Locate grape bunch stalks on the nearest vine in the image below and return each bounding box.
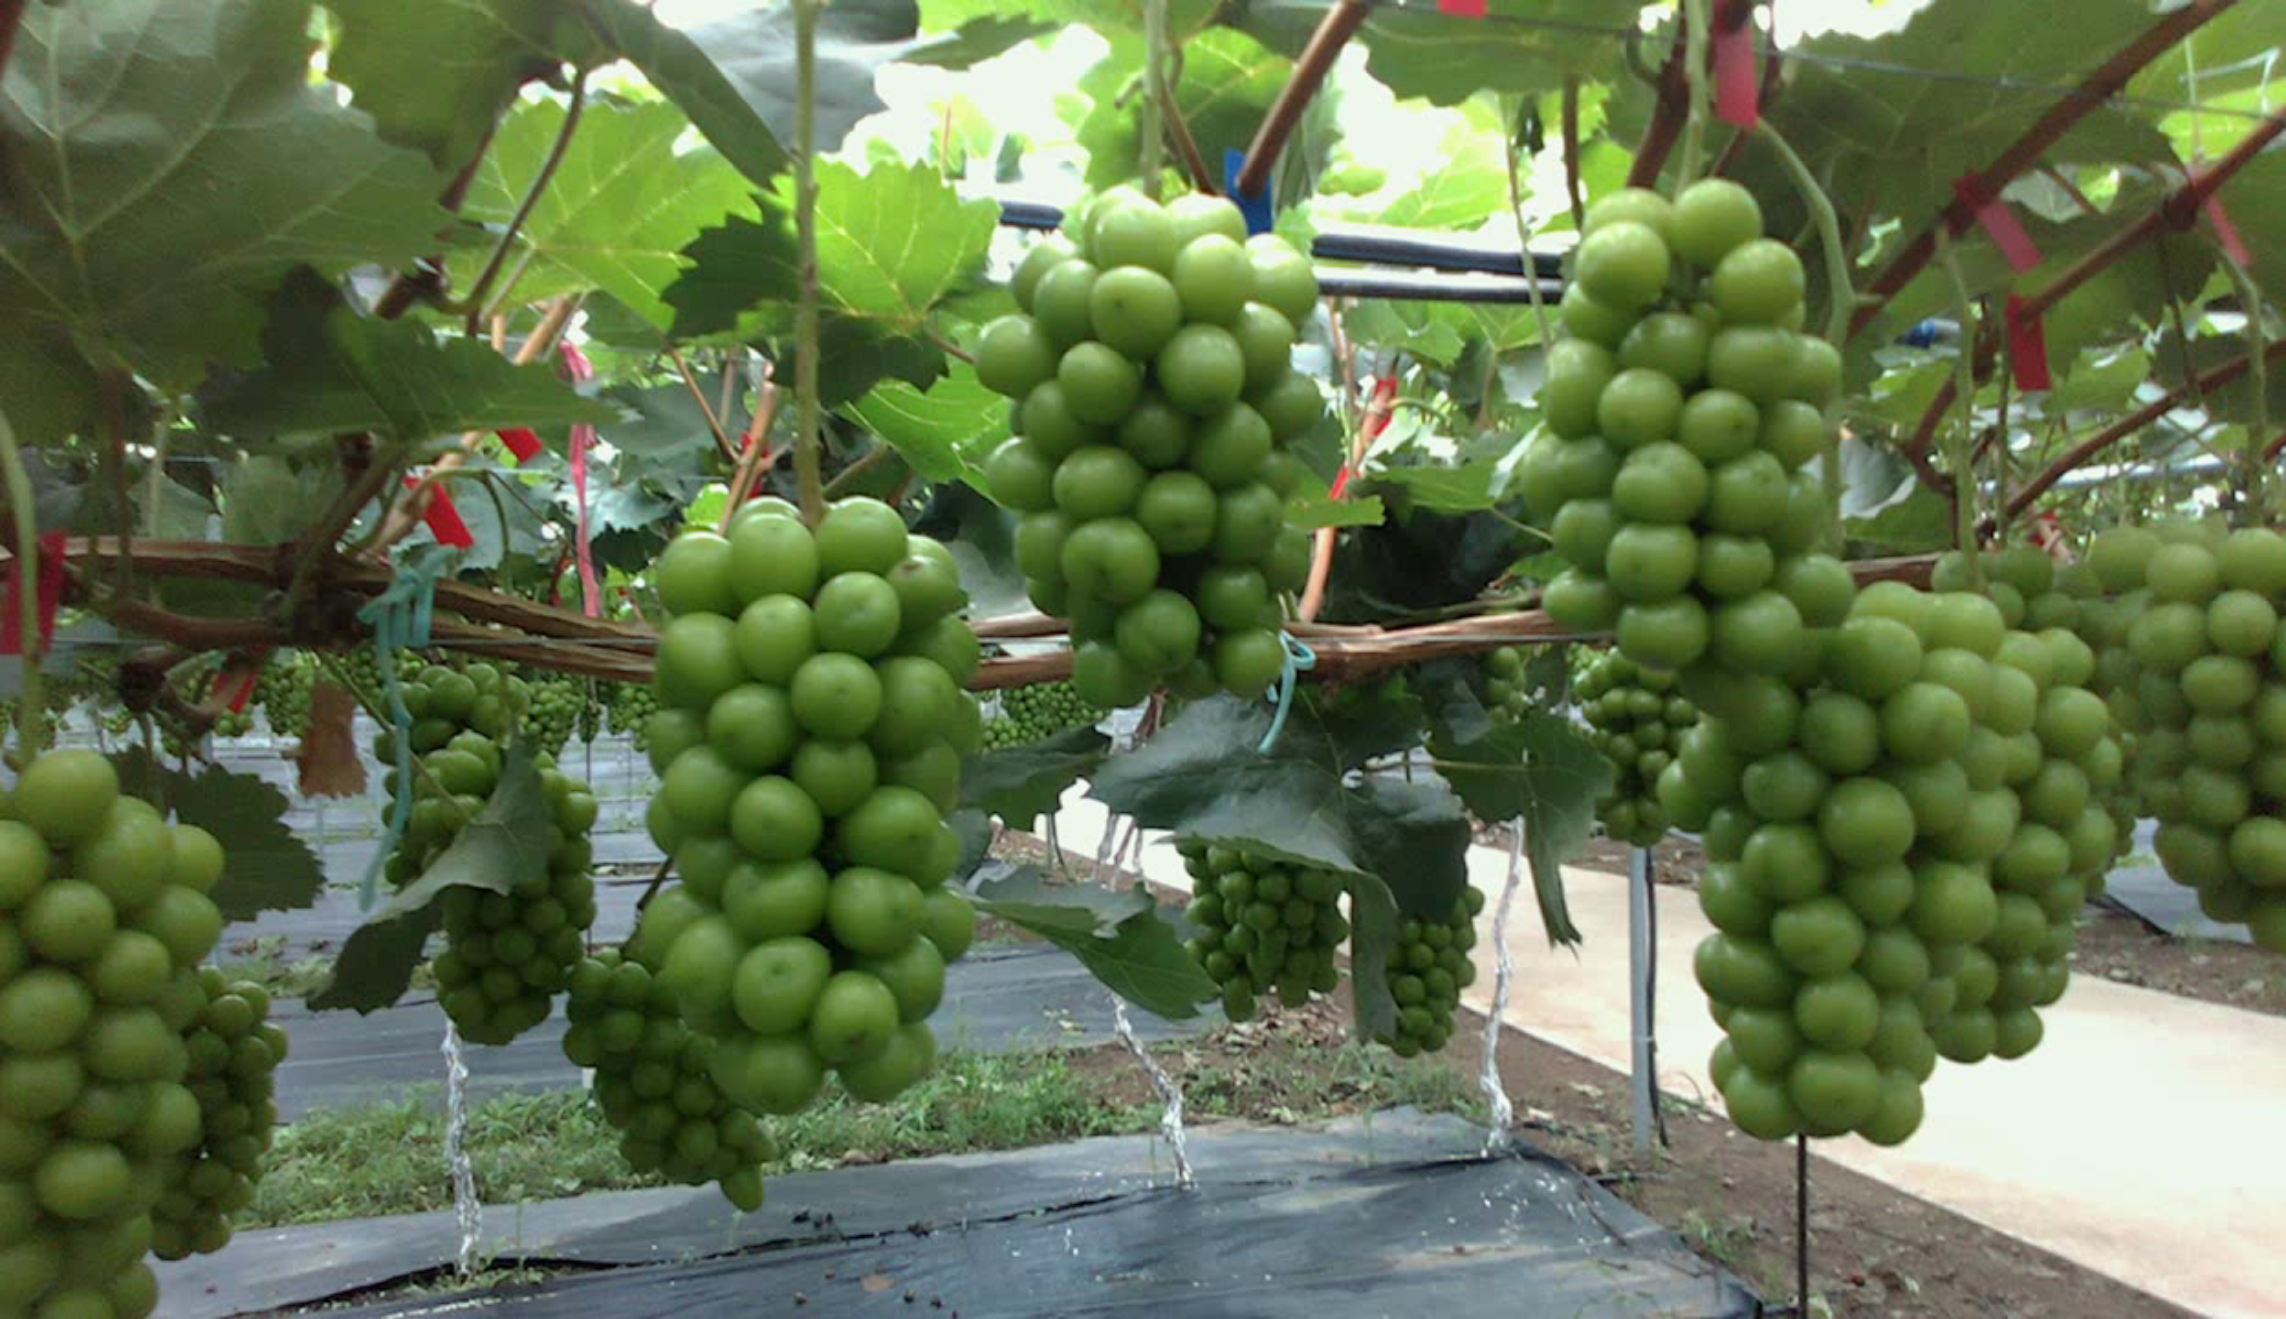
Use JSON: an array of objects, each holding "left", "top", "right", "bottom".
[
  {"left": 1934, "top": 227, "right": 1989, "bottom": 599},
  {"left": 1141, "top": 0, "right": 1167, "bottom": 203},
  {"left": 1747, "top": 117, "right": 1854, "bottom": 561},
  {"left": 2194, "top": 225, "right": 2268, "bottom": 528},
  {"left": 789, "top": 0, "right": 824, "bottom": 533},
  {"left": 1674, "top": 2, "right": 1711, "bottom": 196},
  {"left": 0, "top": 412, "right": 40, "bottom": 768}
]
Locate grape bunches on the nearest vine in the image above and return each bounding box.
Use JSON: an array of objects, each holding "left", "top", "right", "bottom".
[
  {"left": 974, "top": 185, "right": 1326, "bottom": 709},
  {"left": 2090, "top": 520, "right": 2284, "bottom": 958},
  {"left": 1517, "top": 176, "right": 1854, "bottom": 753},
  {"left": 2, "top": 749, "right": 223, "bottom": 1317},
  {"left": 639, "top": 495, "right": 982, "bottom": 1116},
  {"left": 1929, "top": 627, "right": 2125, "bottom": 1066},
  {"left": 1656, "top": 579, "right": 2053, "bottom": 1147}
]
